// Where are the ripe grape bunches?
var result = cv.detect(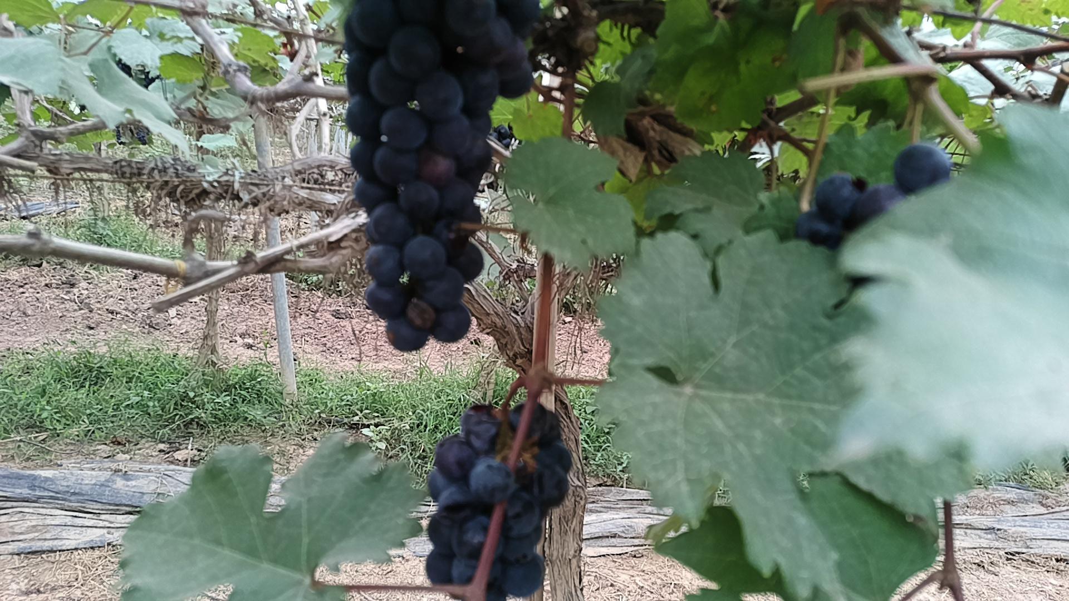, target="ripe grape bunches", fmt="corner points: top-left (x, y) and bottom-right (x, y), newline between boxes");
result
(115, 125), (124, 145)
(344, 0), (540, 352)
(492, 124), (514, 149)
(139, 69), (162, 90)
(115, 57), (136, 78)
(426, 401), (571, 600)
(135, 127), (151, 145)
(795, 143), (953, 249)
